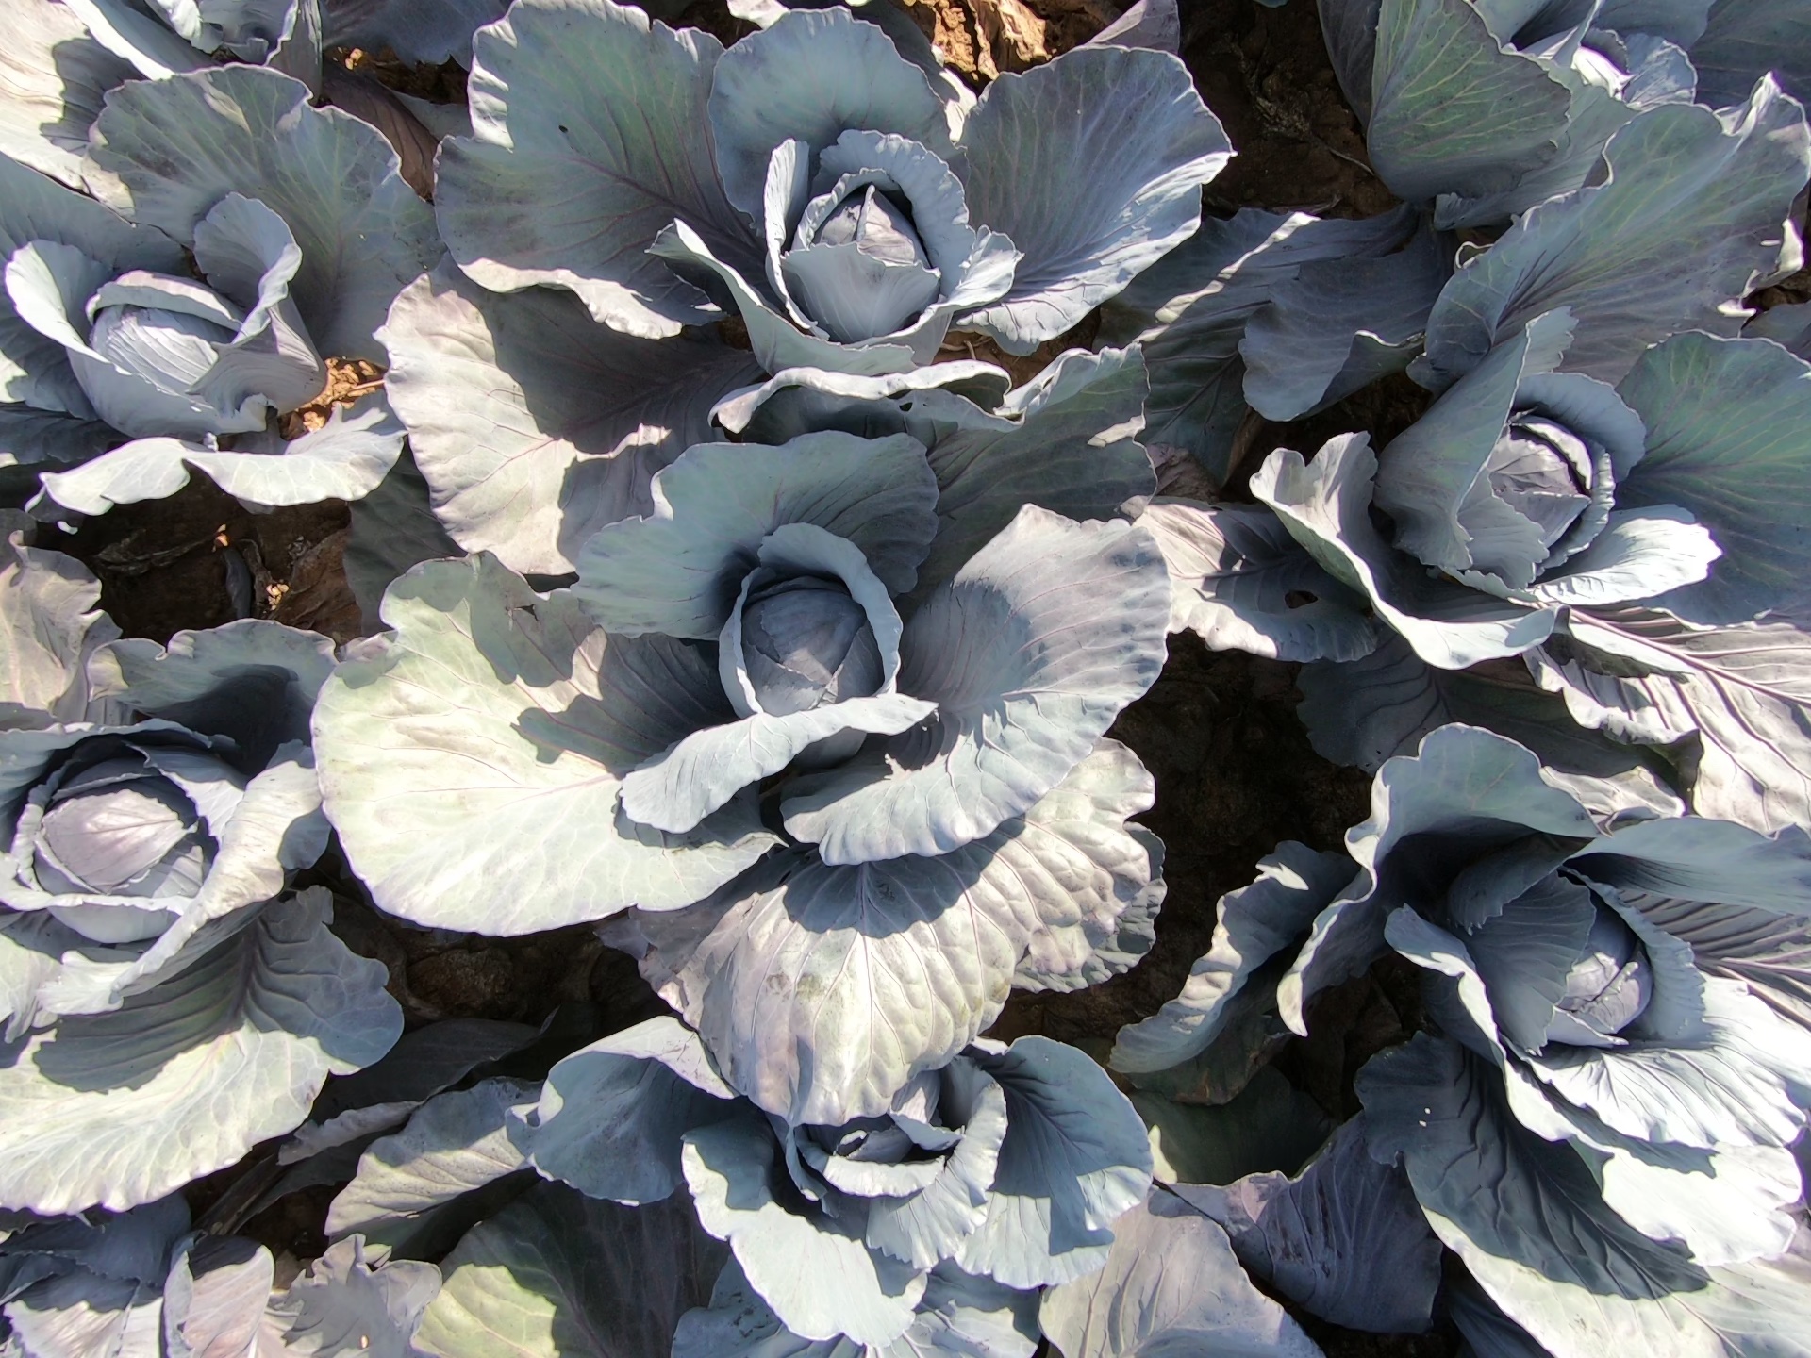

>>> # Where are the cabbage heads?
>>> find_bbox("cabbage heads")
[809,1021,939,1171]
[4,1241,173,1357]
[34,762,235,933]
[734,589,883,742]
[91,287,248,432]
[1491,43,1627,173]
[1479,879,1653,1042]
[1439,414,1593,563]
[812,198,926,333]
